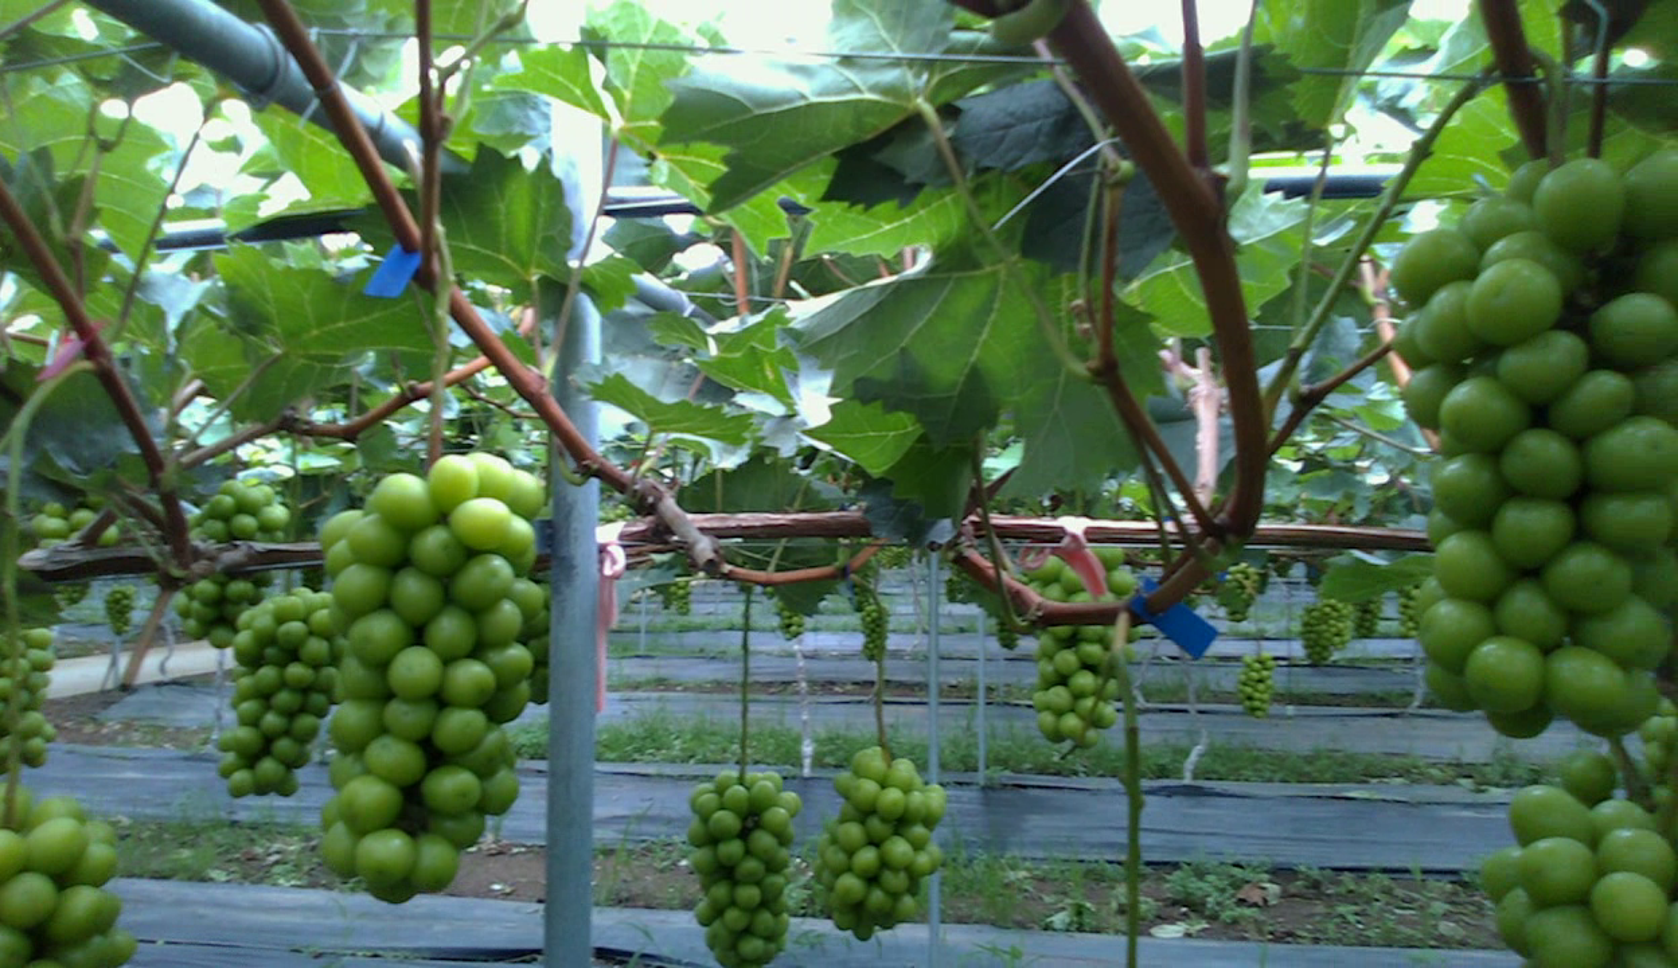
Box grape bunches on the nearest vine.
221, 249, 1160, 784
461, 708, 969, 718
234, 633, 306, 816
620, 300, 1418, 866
1389, 144, 1675, 741
1478, 749, 1675, 967
317, 453, 545, 905
0, 784, 136, 967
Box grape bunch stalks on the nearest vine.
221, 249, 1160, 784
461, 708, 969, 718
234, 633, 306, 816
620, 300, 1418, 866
428, 216, 458, 467
1608, 737, 1656, 812
1, 359, 94, 830
1583, 0, 1613, 159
